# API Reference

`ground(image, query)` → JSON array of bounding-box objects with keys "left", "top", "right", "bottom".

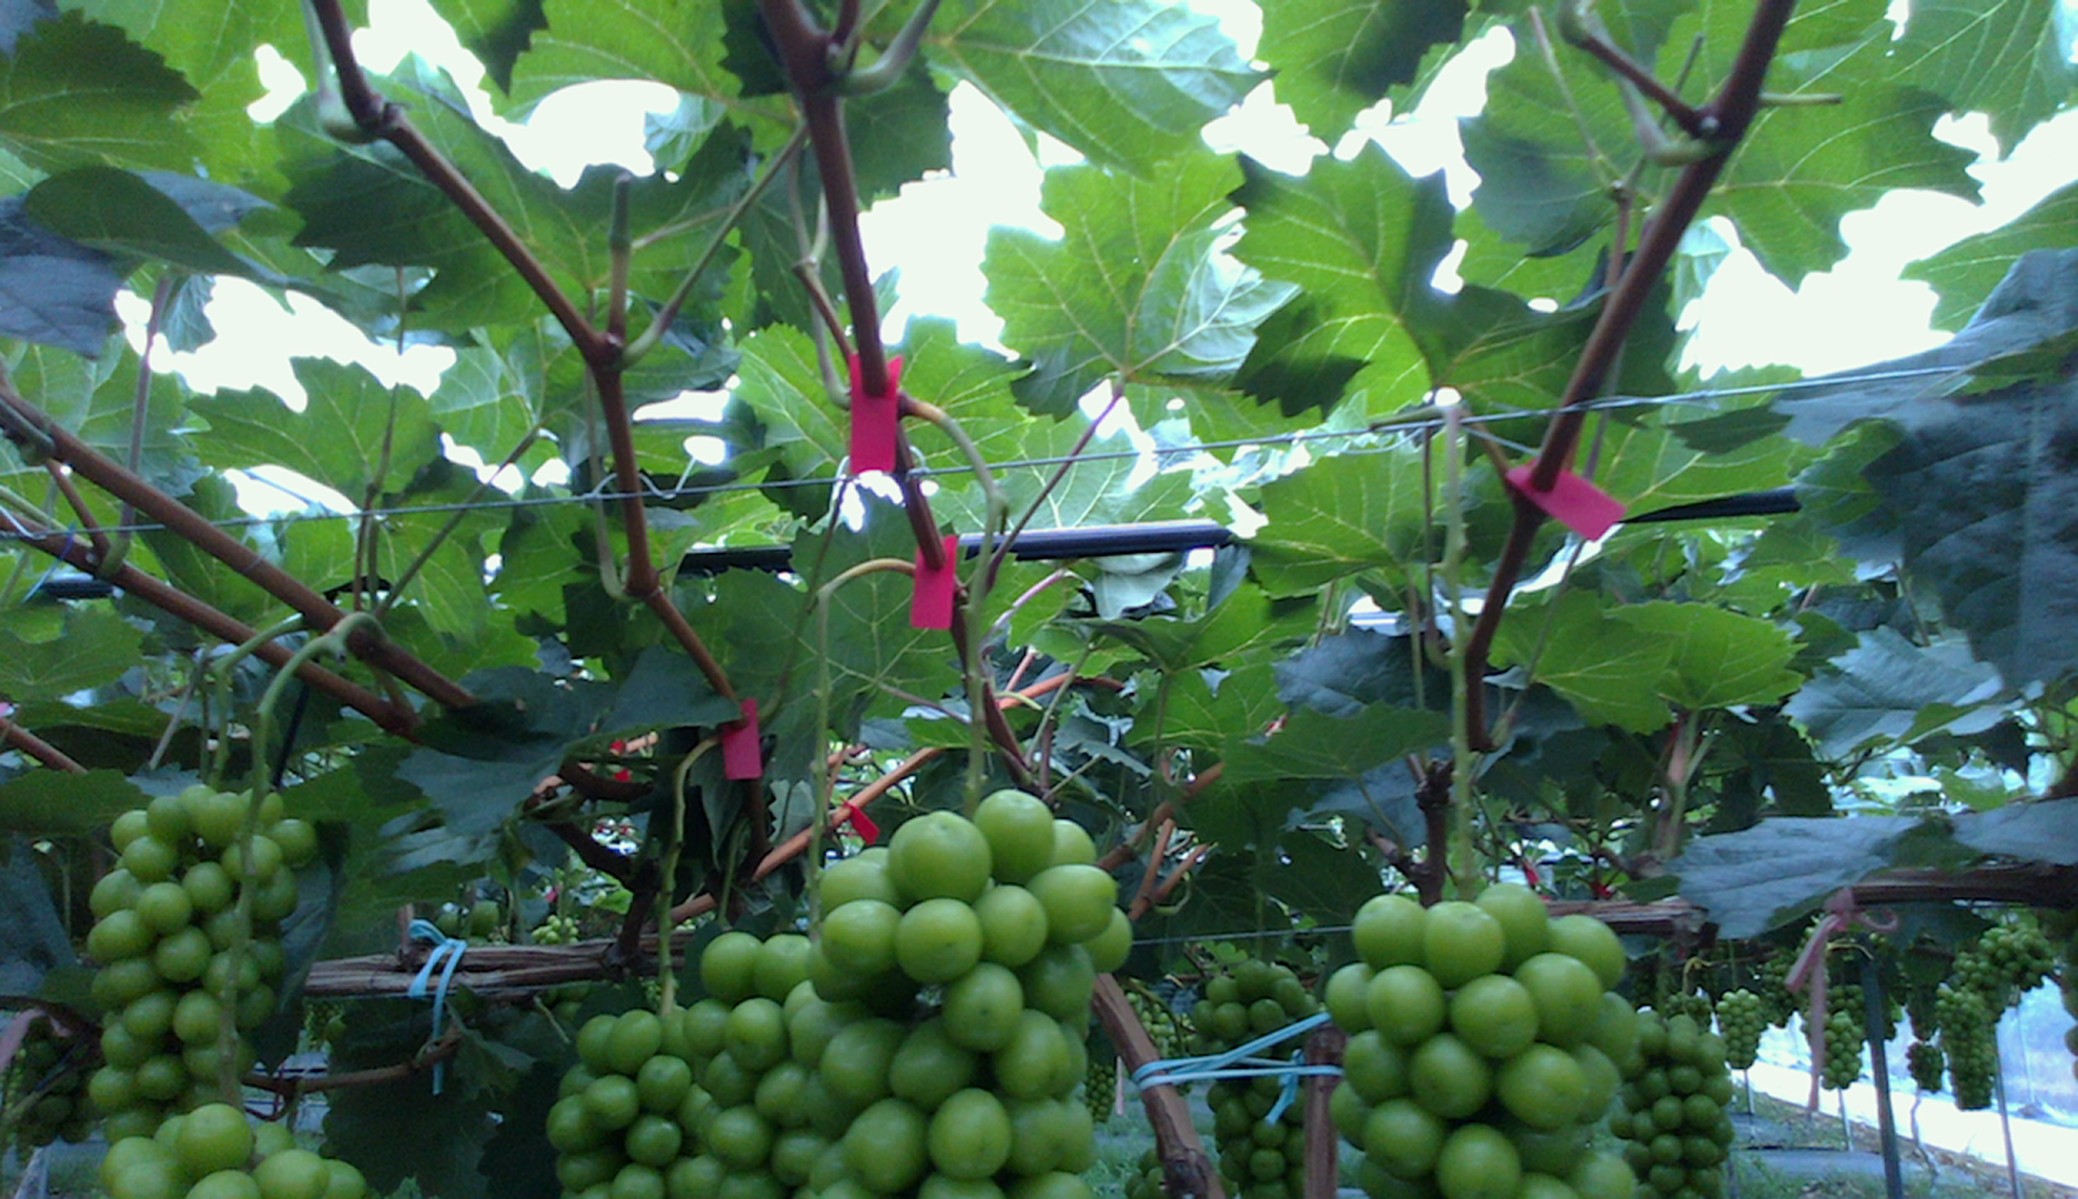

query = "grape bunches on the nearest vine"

[
  {"left": 102, "top": 1102, "right": 370, "bottom": 1197},
  {"left": 1327, "top": 883, "right": 1635, "bottom": 1197},
  {"left": 544, "top": 1006, "right": 709, "bottom": 1197},
  {"left": 681, "top": 933, "right": 828, "bottom": 1197},
  {"left": 789, "top": 788, "right": 1132, "bottom": 1196},
  {"left": 85, "top": 786, "right": 316, "bottom": 1149}
]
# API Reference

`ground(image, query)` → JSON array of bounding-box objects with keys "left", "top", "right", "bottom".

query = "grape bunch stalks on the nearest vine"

[
  {"left": 658, "top": 736, "right": 716, "bottom": 1014},
  {"left": 809, "top": 558, "right": 914, "bottom": 941},
  {"left": 220, "top": 613, "right": 381, "bottom": 1119},
  {"left": 1444, "top": 413, "right": 1475, "bottom": 903},
  {"left": 208, "top": 614, "right": 306, "bottom": 789},
  {"left": 906, "top": 395, "right": 997, "bottom": 819}
]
